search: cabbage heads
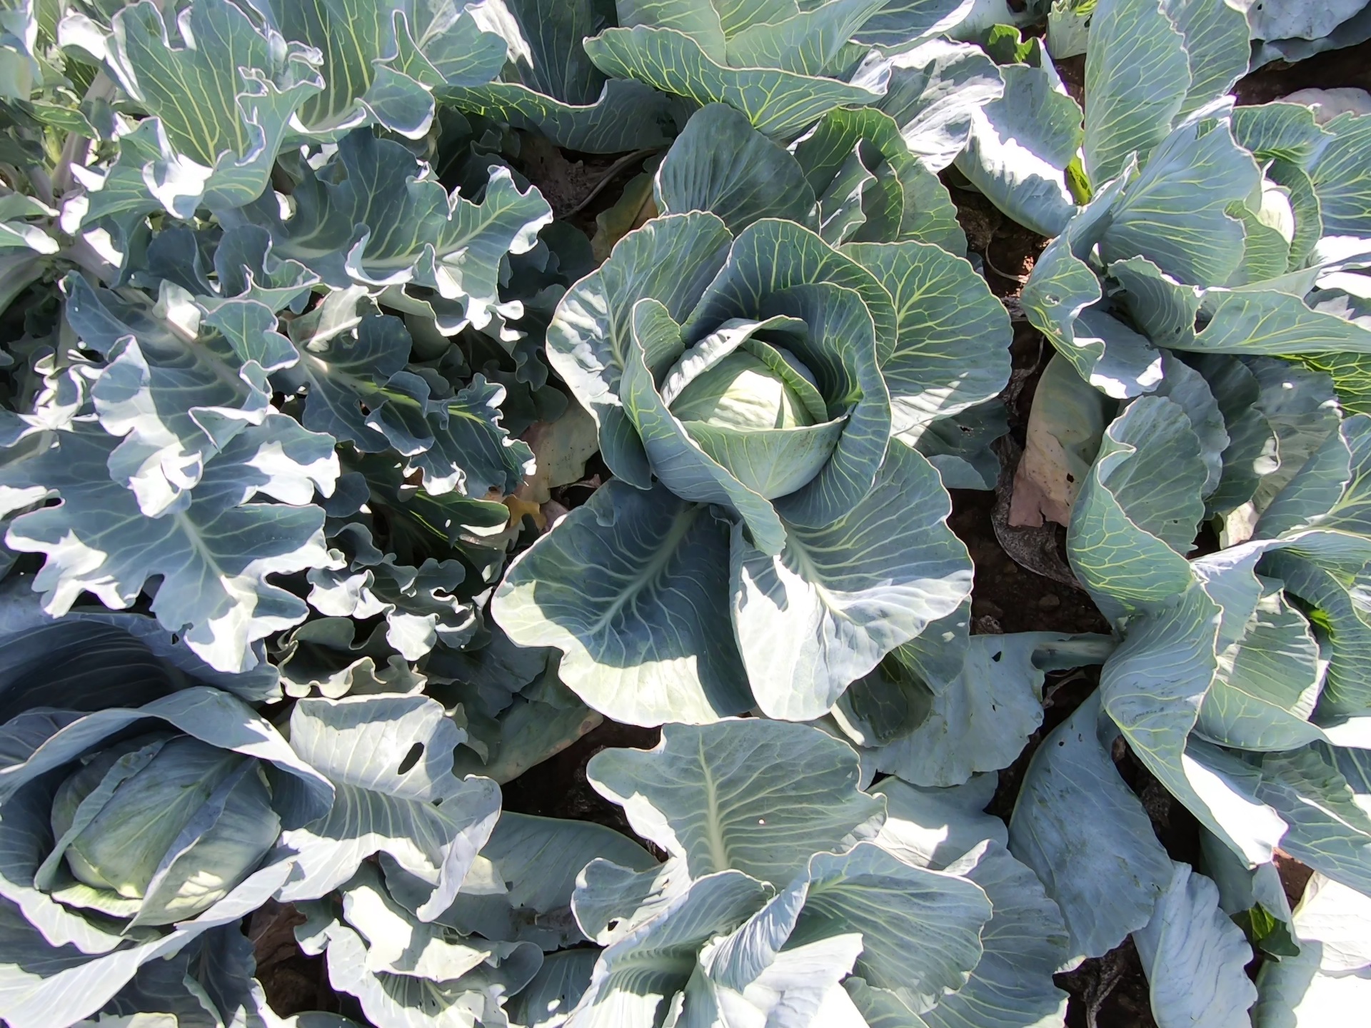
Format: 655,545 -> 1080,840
59,735 -> 266,902
1177,169 -> 1300,288
678,959 -> 865,1025
656,347 -> 820,489
1161,597 -> 1315,742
